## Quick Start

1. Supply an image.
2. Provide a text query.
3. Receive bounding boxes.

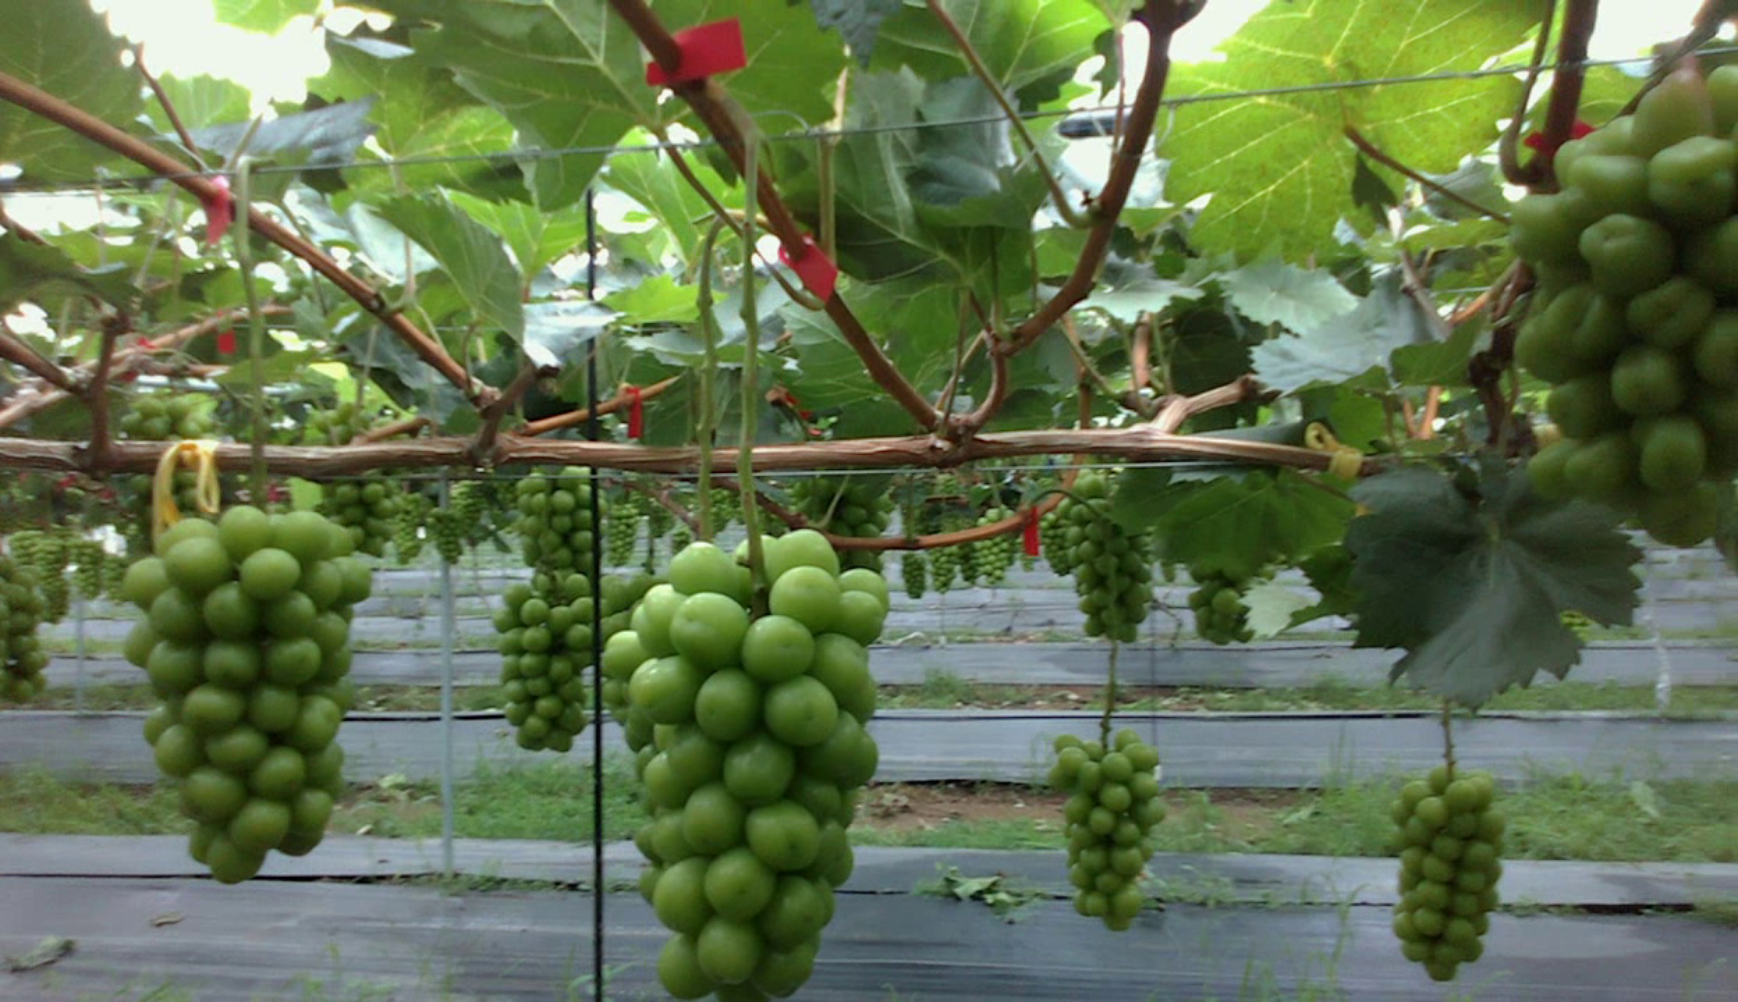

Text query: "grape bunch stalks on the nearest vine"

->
[231,154,276,515]
[739,129,767,619]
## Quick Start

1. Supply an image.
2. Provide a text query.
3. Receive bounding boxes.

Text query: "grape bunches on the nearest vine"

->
[604,527,888,1001]
[124,507,375,884]
[1510,64,1735,555]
